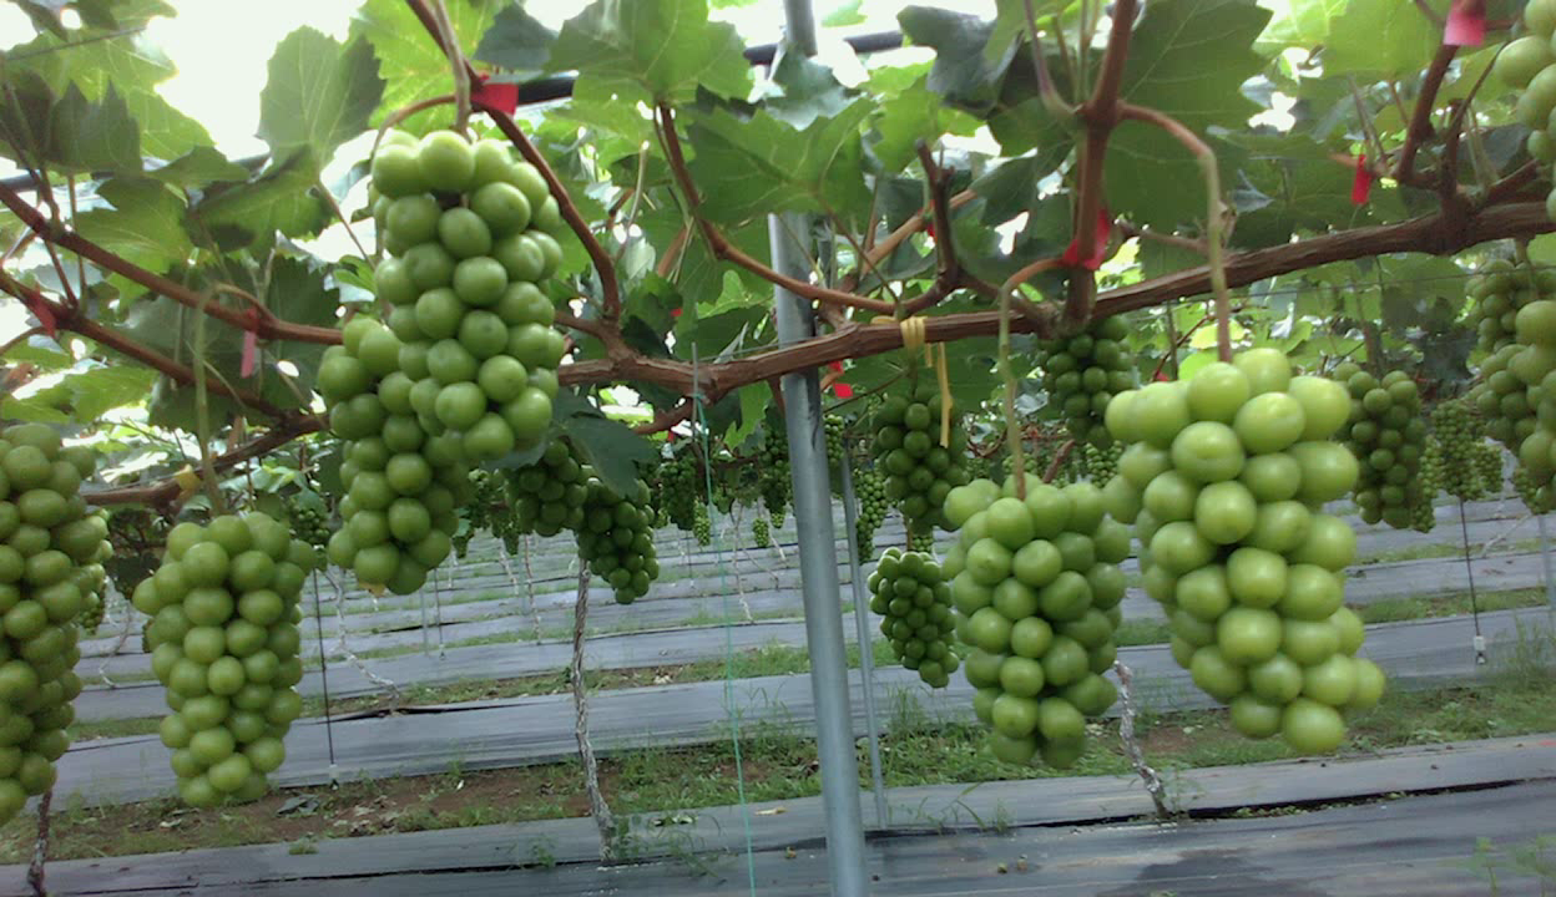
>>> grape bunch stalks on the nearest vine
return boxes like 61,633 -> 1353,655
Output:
430,2 -> 471,133
1118,105 -> 1229,359
194,283 -> 277,517
997,255 -> 1069,502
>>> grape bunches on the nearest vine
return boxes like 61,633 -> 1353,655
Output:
0,424 -> 96,796
1105,349 -> 1383,754
941,475 -> 1130,765
133,510 -> 317,806
318,319 -> 475,596
373,130 -> 566,462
